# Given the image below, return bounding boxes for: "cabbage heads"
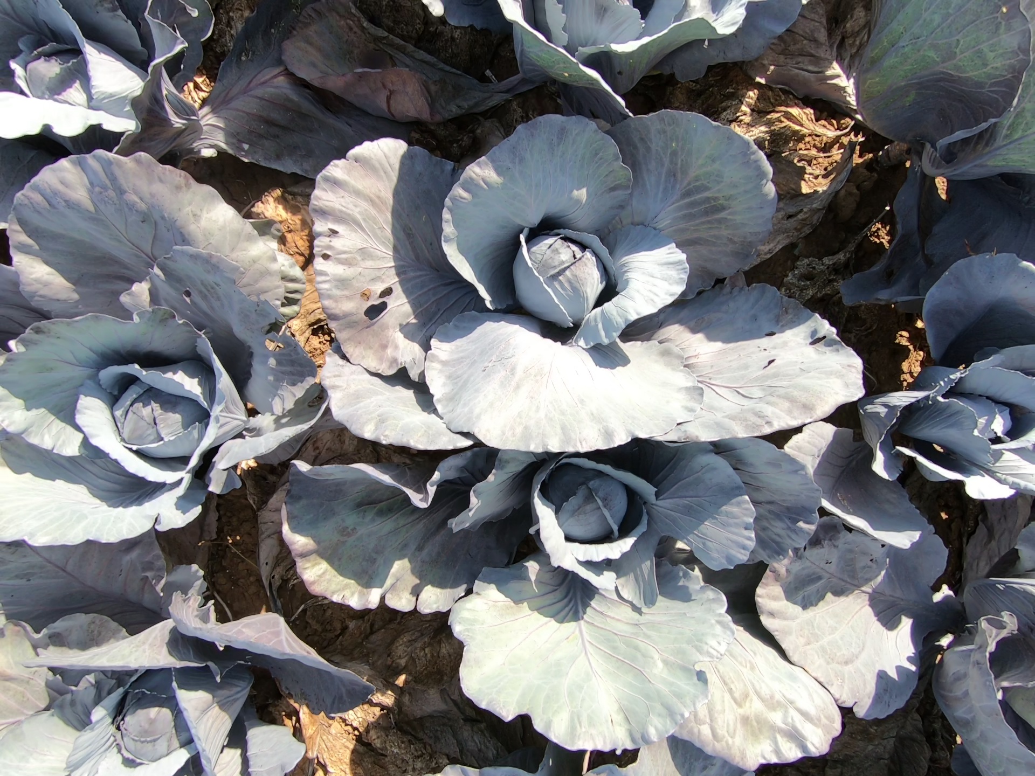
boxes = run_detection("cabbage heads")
[544,458,628,540]
[941,396,1012,444]
[551,3,633,50]
[115,372,222,458]
[122,667,224,767]
[28,47,138,124]
[518,231,606,321]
